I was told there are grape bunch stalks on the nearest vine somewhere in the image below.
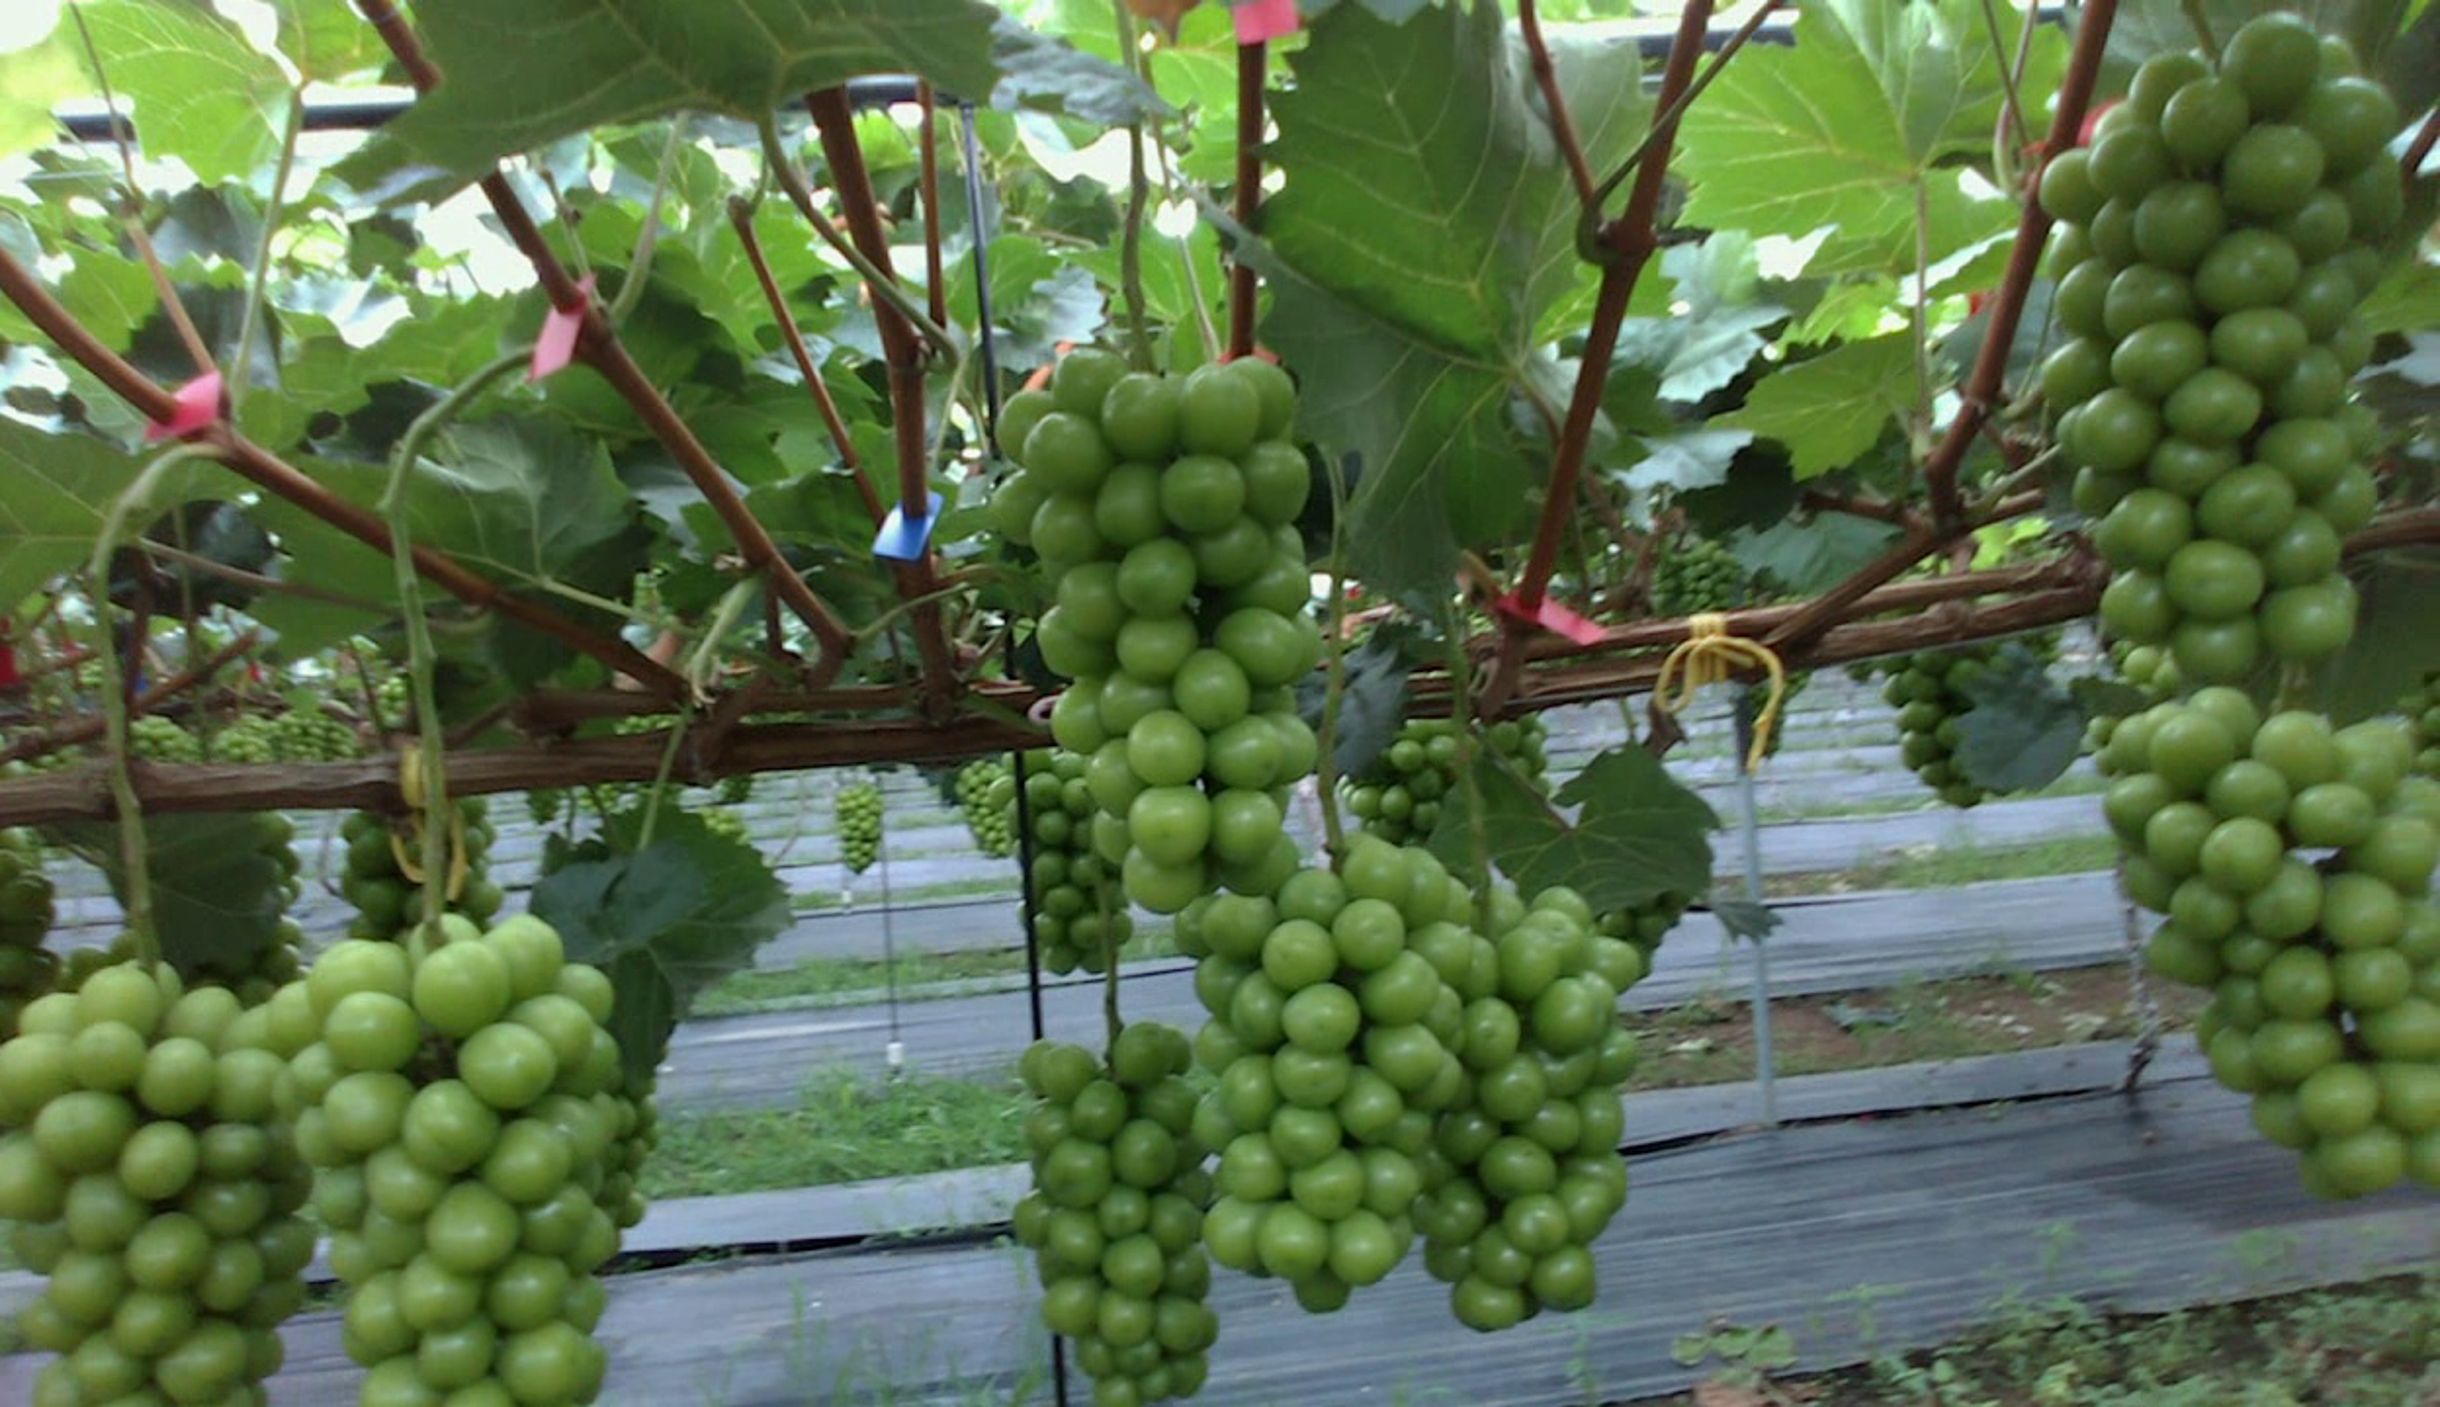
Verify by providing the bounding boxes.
[2272,666,2303,711]
[1112,0,1163,371]
[1318,451,1347,872]
[379,344,524,944]
[1445,602,1498,940]
[1097,862,1122,1071]
[88,442,190,973]
[2182,0,2215,66]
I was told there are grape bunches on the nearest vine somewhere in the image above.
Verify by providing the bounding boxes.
[2035,14,2405,686]
[272,915,620,1405]
[2096,686,2438,1212]
[1015,1022,1218,1405]
[0,963,321,1405]
[1173,834,1474,1311]
[1417,887,1642,1329]
[989,350,1318,917]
